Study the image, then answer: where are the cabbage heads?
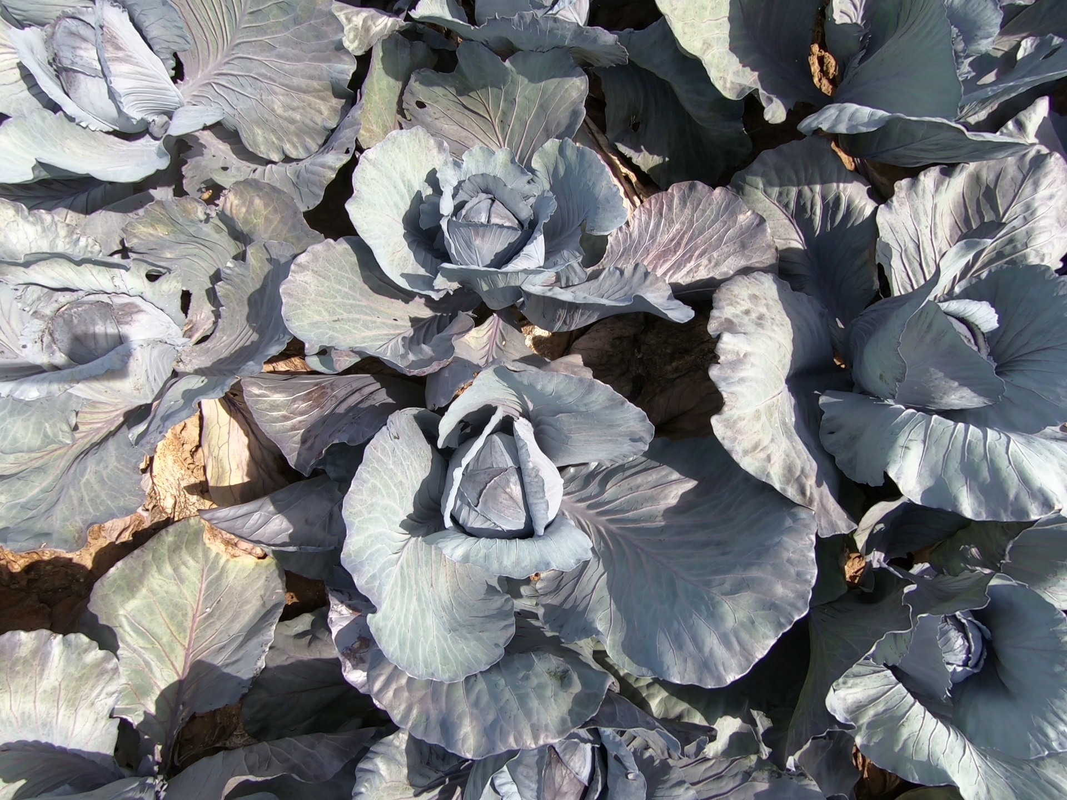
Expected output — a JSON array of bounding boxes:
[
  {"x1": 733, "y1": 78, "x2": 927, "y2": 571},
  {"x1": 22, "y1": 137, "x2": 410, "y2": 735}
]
[
  {"x1": 893, "y1": 313, "x2": 984, "y2": 409},
  {"x1": 53, "y1": 9, "x2": 163, "y2": 132},
  {"x1": 473, "y1": 706, "x2": 600, "y2": 797},
  {"x1": 445, "y1": 433, "x2": 563, "y2": 543},
  {"x1": 39, "y1": 291, "x2": 178, "y2": 392},
  {"x1": 475, "y1": 2, "x2": 592, "y2": 53},
  {"x1": 452, "y1": 198, "x2": 526, "y2": 271},
  {"x1": 906, "y1": 602, "x2": 983, "y2": 683}
]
